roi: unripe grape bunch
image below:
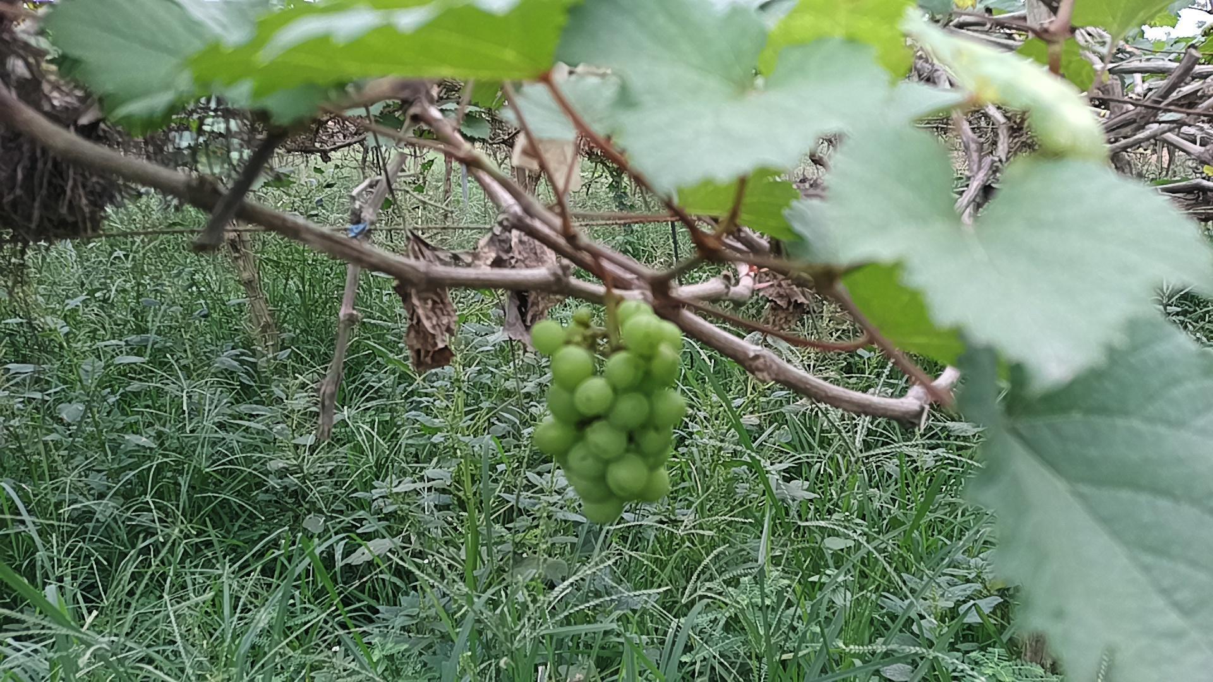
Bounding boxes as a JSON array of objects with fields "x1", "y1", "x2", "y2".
[{"x1": 532, "y1": 302, "x2": 685, "y2": 523}]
